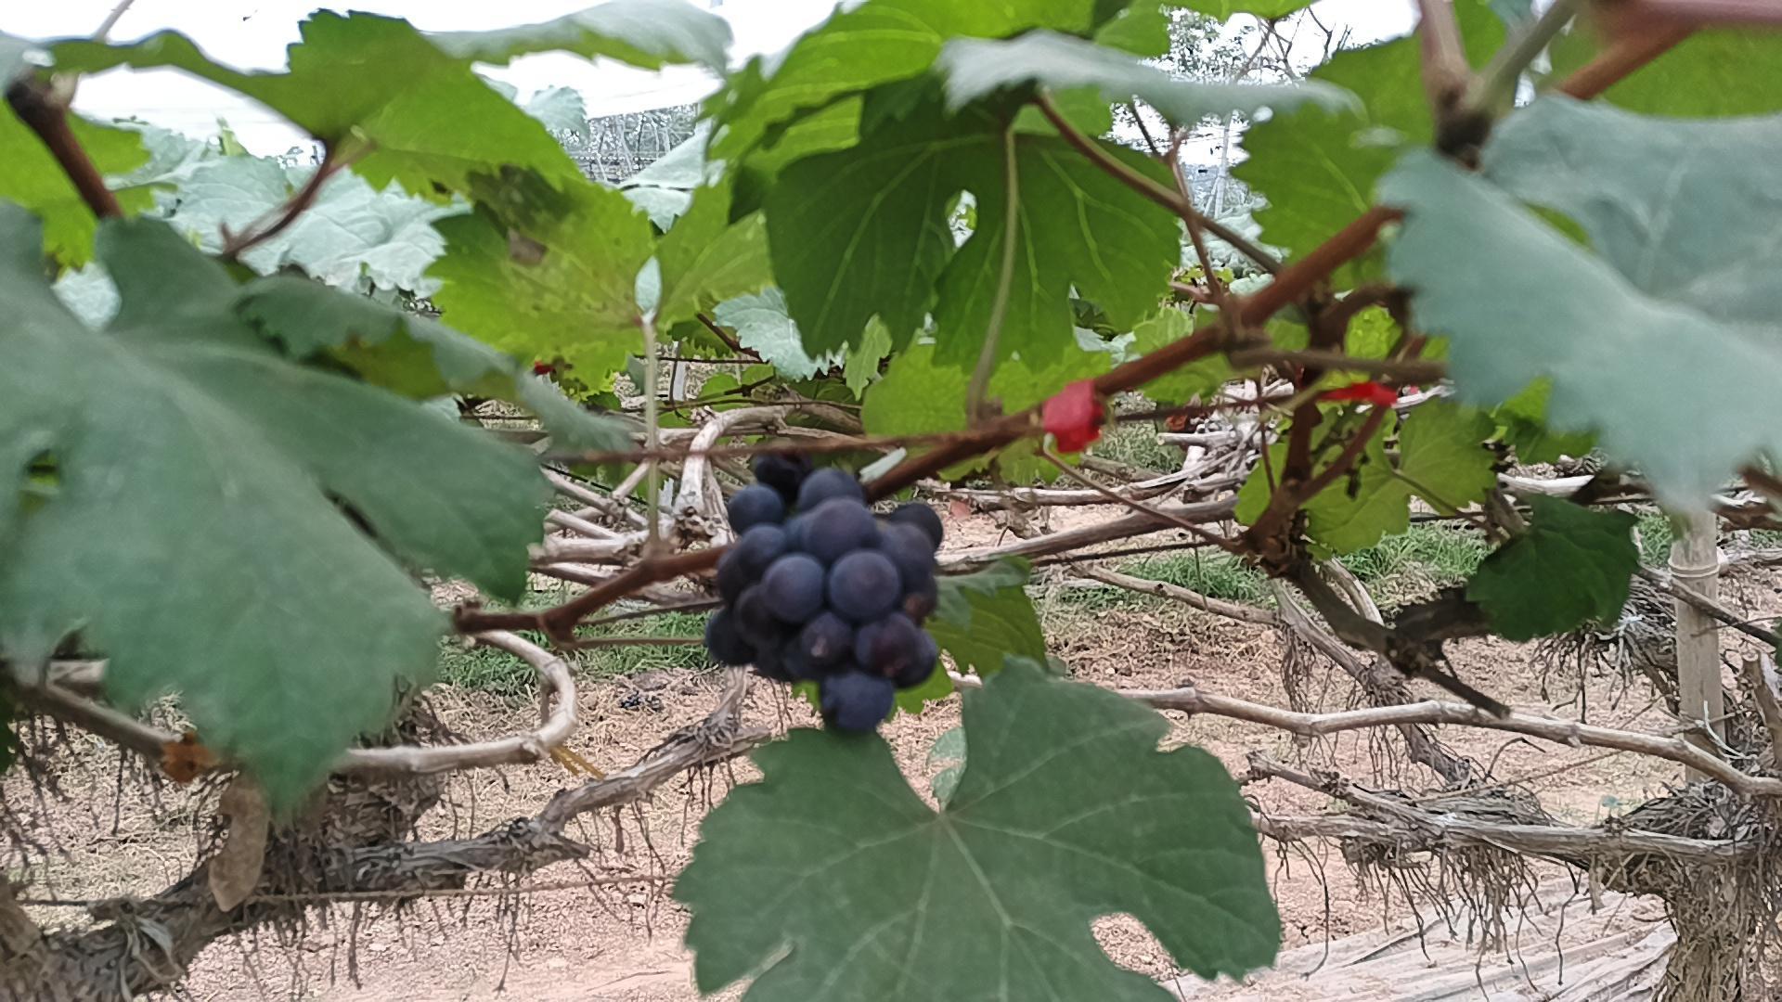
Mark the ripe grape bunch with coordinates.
[706,456,943,731]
